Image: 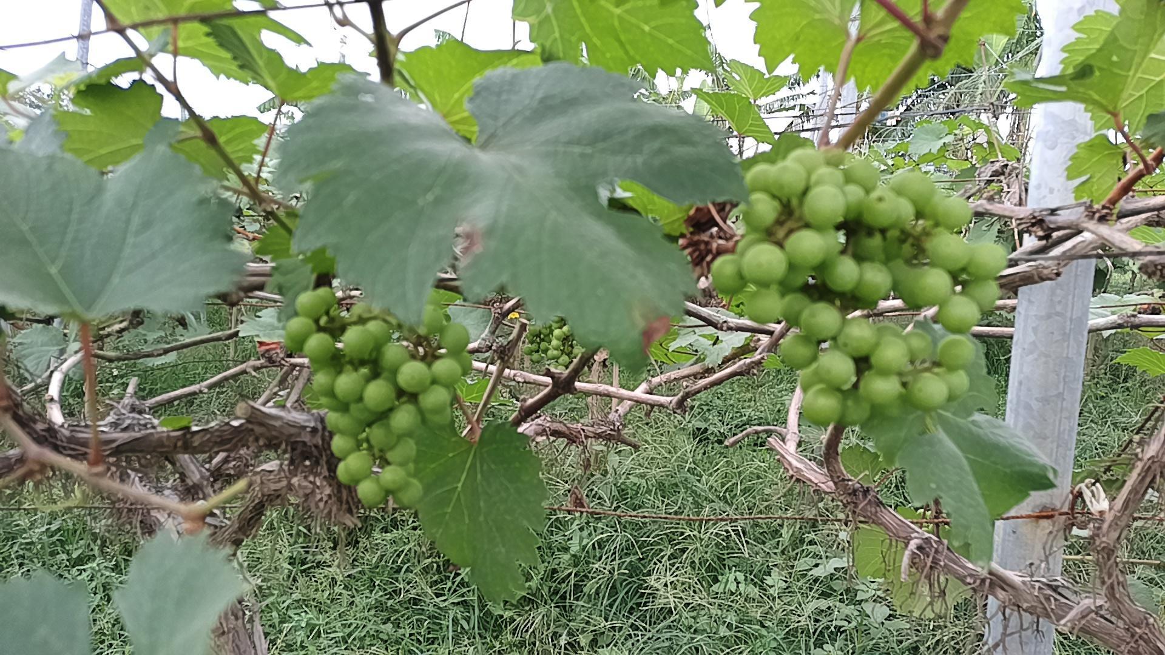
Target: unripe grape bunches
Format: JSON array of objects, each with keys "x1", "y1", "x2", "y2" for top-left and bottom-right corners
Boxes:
[
  {"x1": 711, "y1": 146, "x2": 1005, "y2": 426},
  {"x1": 284, "y1": 287, "x2": 471, "y2": 508},
  {"x1": 522, "y1": 317, "x2": 590, "y2": 371}
]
